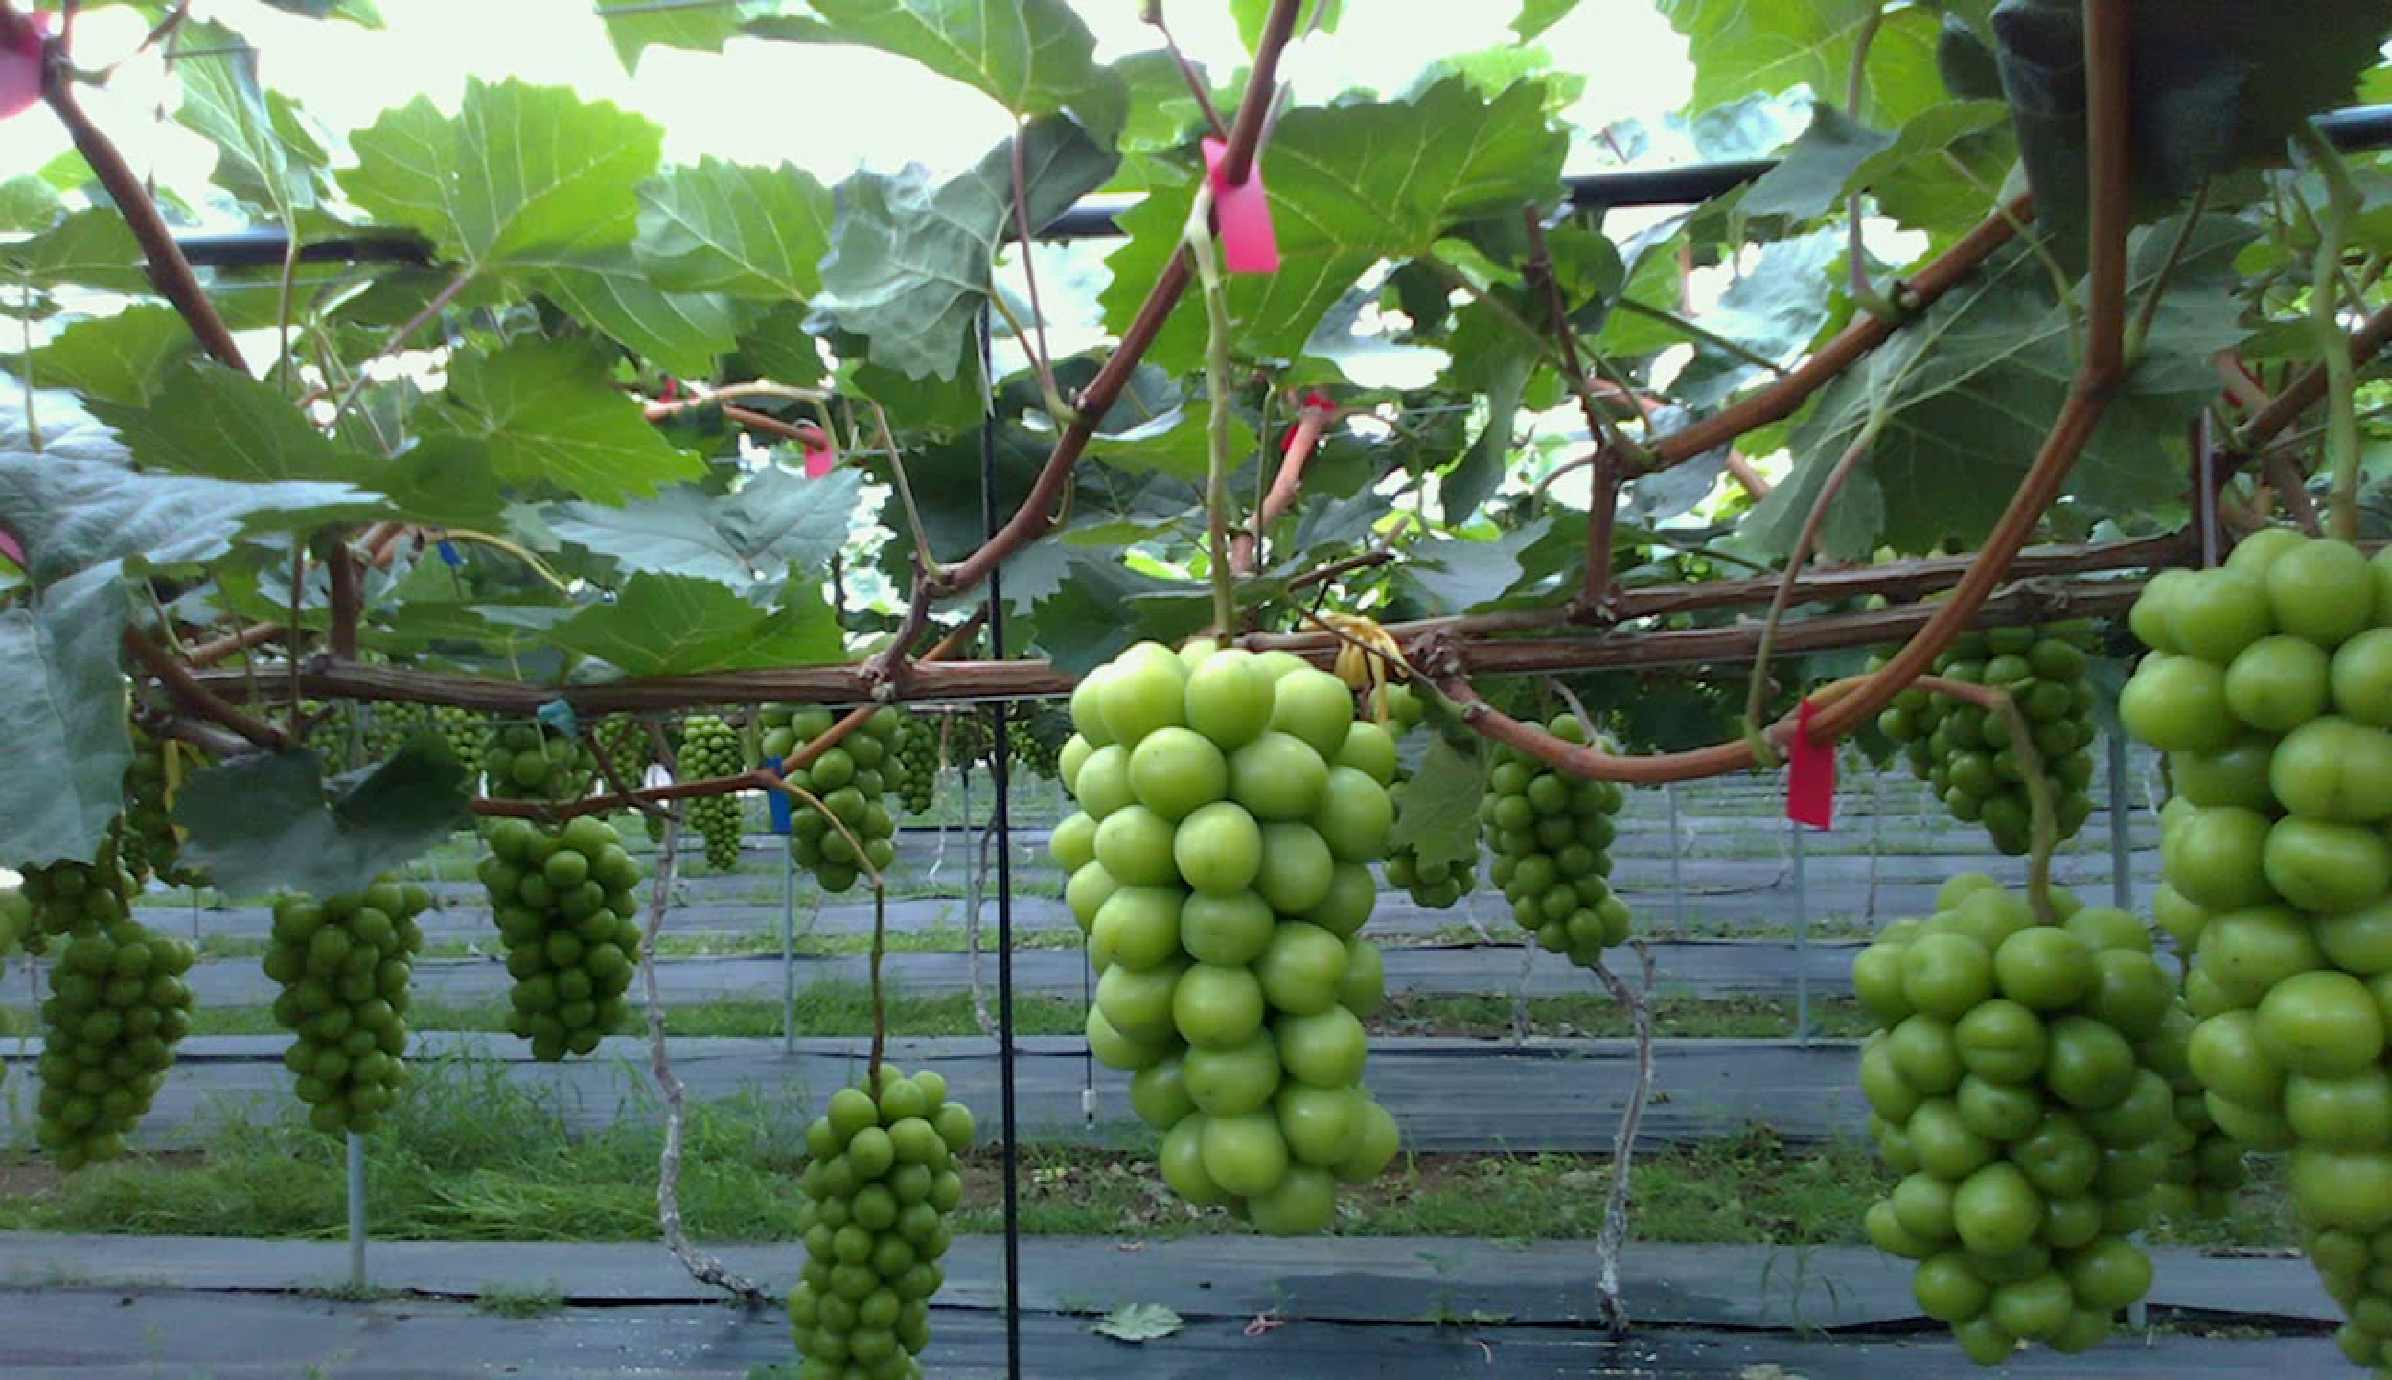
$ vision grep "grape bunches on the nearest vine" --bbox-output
[1050,640,1401,1236]
[2116,531,2390,1232]
[1846,872,2189,1368]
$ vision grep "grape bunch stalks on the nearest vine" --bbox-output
[1181,186,1240,648]
[2298,126,2361,542]
[1919,677,2058,922]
